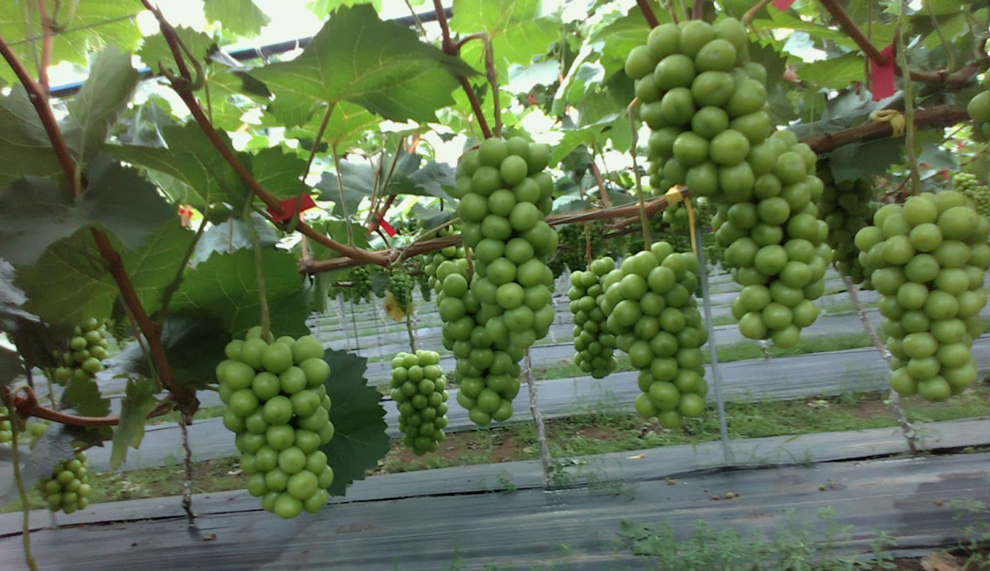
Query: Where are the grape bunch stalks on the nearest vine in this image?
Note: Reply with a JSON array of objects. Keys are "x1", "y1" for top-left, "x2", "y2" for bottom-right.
[
  {"x1": 397, "y1": 264, "x2": 415, "y2": 353},
  {"x1": 628, "y1": 97, "x2": 652, "y2": 249},
  {"x1": 452, "y1": 33, "x2": 501, "y2": 140},
  {"x1": 244, "y1": 188, "x2": 270, "y2": 342},
  {"x1": 897, "y1": 1, "x2": 922, "y2": 197}
]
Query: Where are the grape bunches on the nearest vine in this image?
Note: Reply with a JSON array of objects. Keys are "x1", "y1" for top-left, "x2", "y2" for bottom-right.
[
  {"x1": 456, "y1": 136, "x2": 558, "y2": 347},
  {"x1": 711, "y1": 132, "x2": 831, "y2": 346},
  {"x1": 217, "y1": 326, "x2": 335, "y2": 520},
  {"x1": 601, "y1": 242, "x2": 709, "y2": 428},
  {"x1": 433, "y1": 259, "x2": 524, "y2": 425},
  {"x1": 390, "y1": 350, "x2": 448, "y2": 456},
  {"x1": 856, "y1": 192, "x2": 988, "y2": 401},
  {"x1": 624, "y1": 17, "x2": 778, "y2": 197}
]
